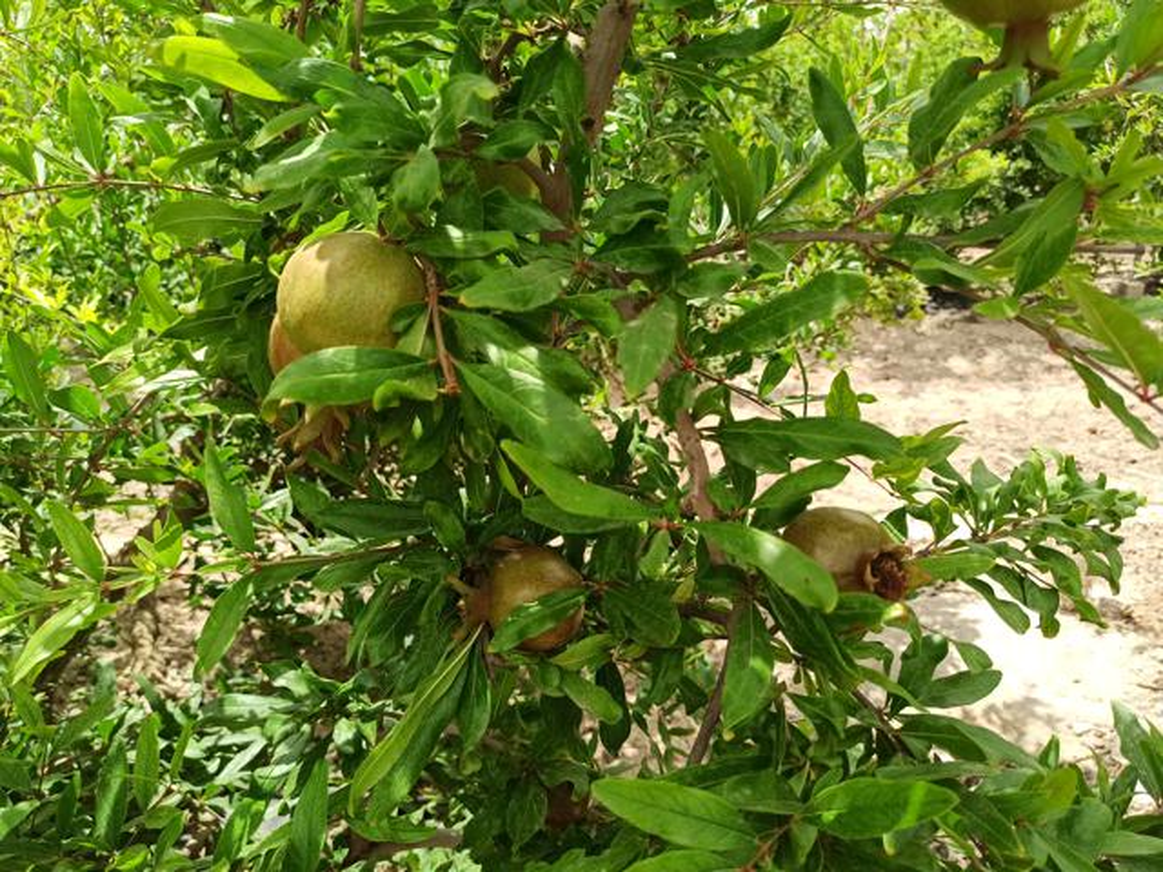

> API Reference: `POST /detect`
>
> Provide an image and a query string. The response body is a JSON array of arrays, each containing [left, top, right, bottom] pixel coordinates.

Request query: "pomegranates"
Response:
[[269, 311, 351, 467], [443, 549, 587, 650], [276, 231, 425, 354], [941, 0, 1088, 80], [780, 505, 930, 601]]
